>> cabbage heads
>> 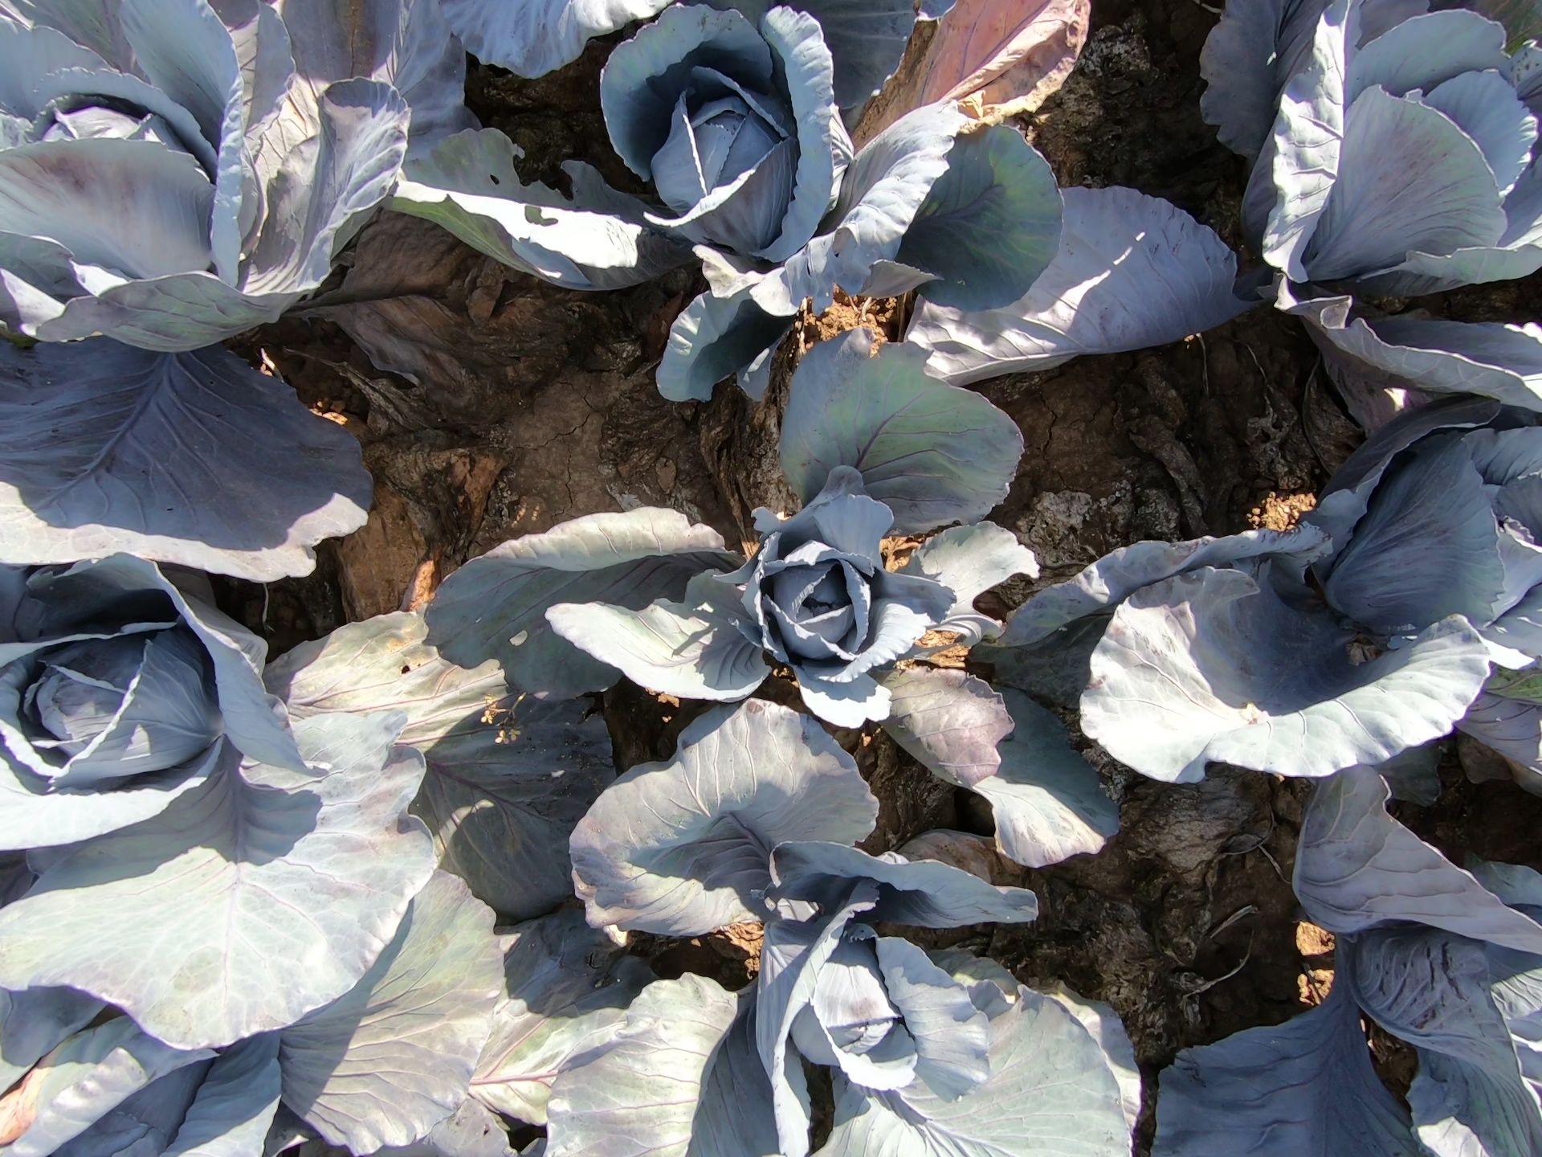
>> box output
[785,946,895,1061]
[35,631,201,762]
[37,103,202,241]
[6,1032,200,1157]
[1373,518,1532,640]
[675,97,794,224]
[1404,909,1539,1063]
[779,565,862,658]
